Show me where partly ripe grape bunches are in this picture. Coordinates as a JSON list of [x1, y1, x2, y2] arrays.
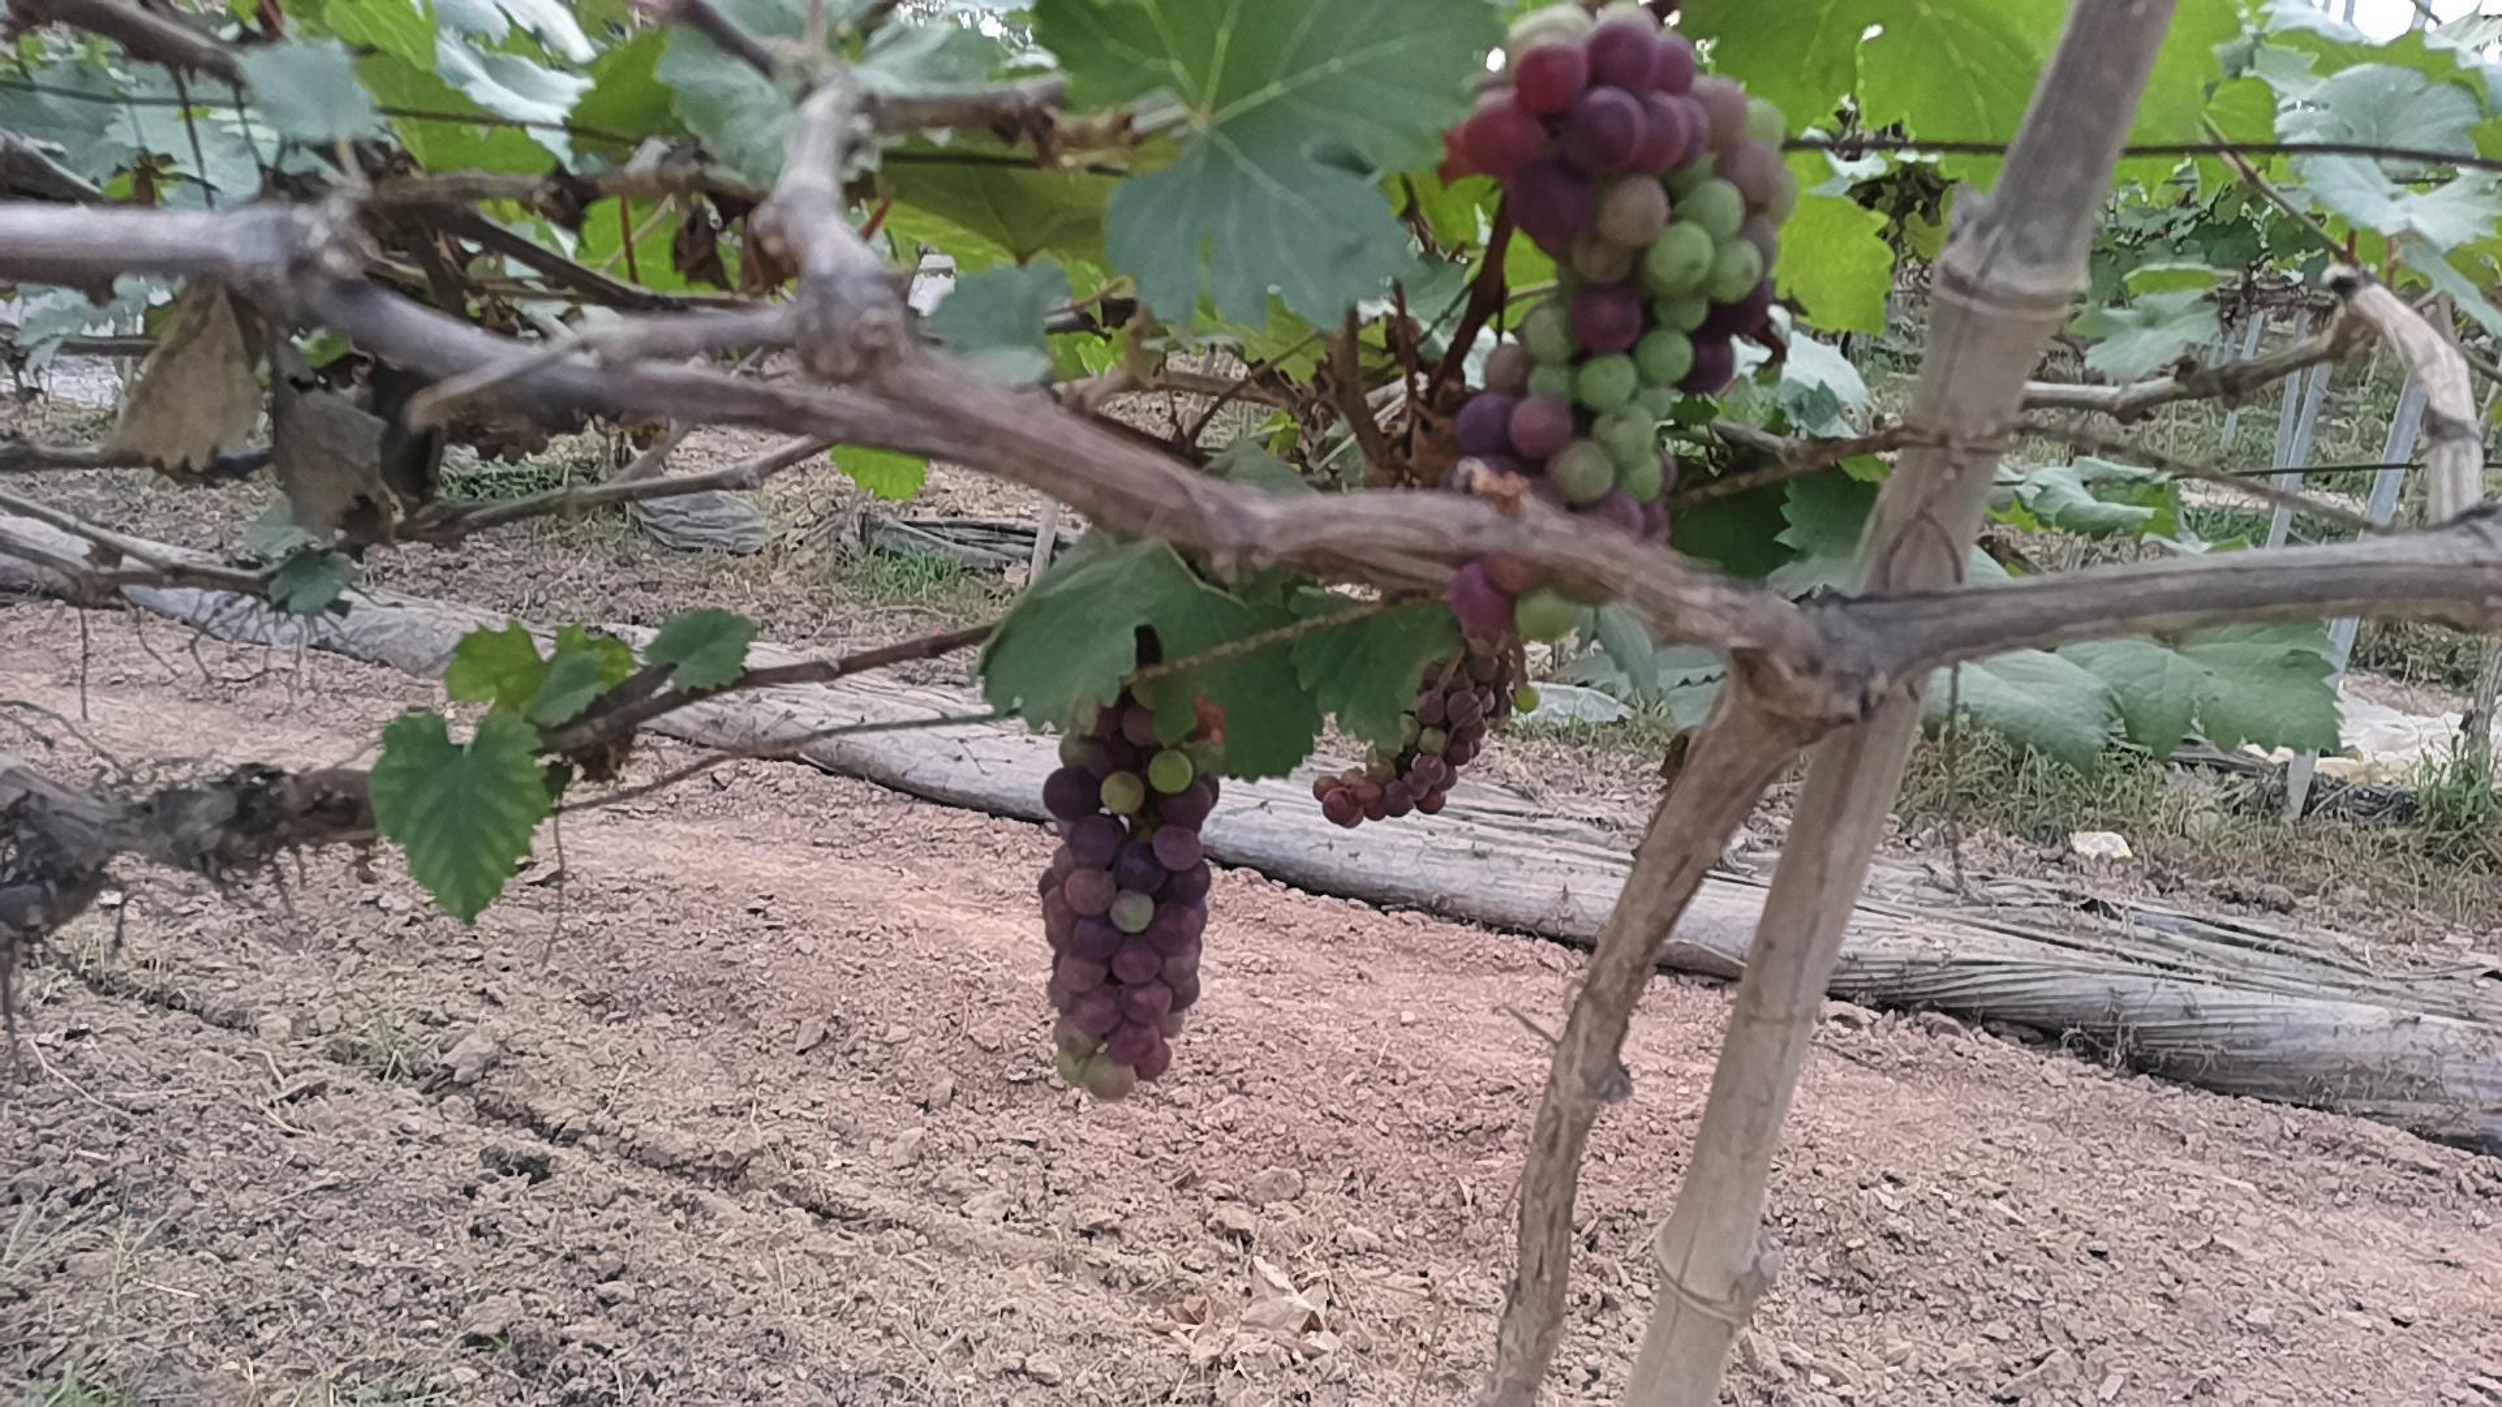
[[1314, 632, 1542, 827], [1039, 685, 1221, 1097], [1449, 0, 1797, 655]]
